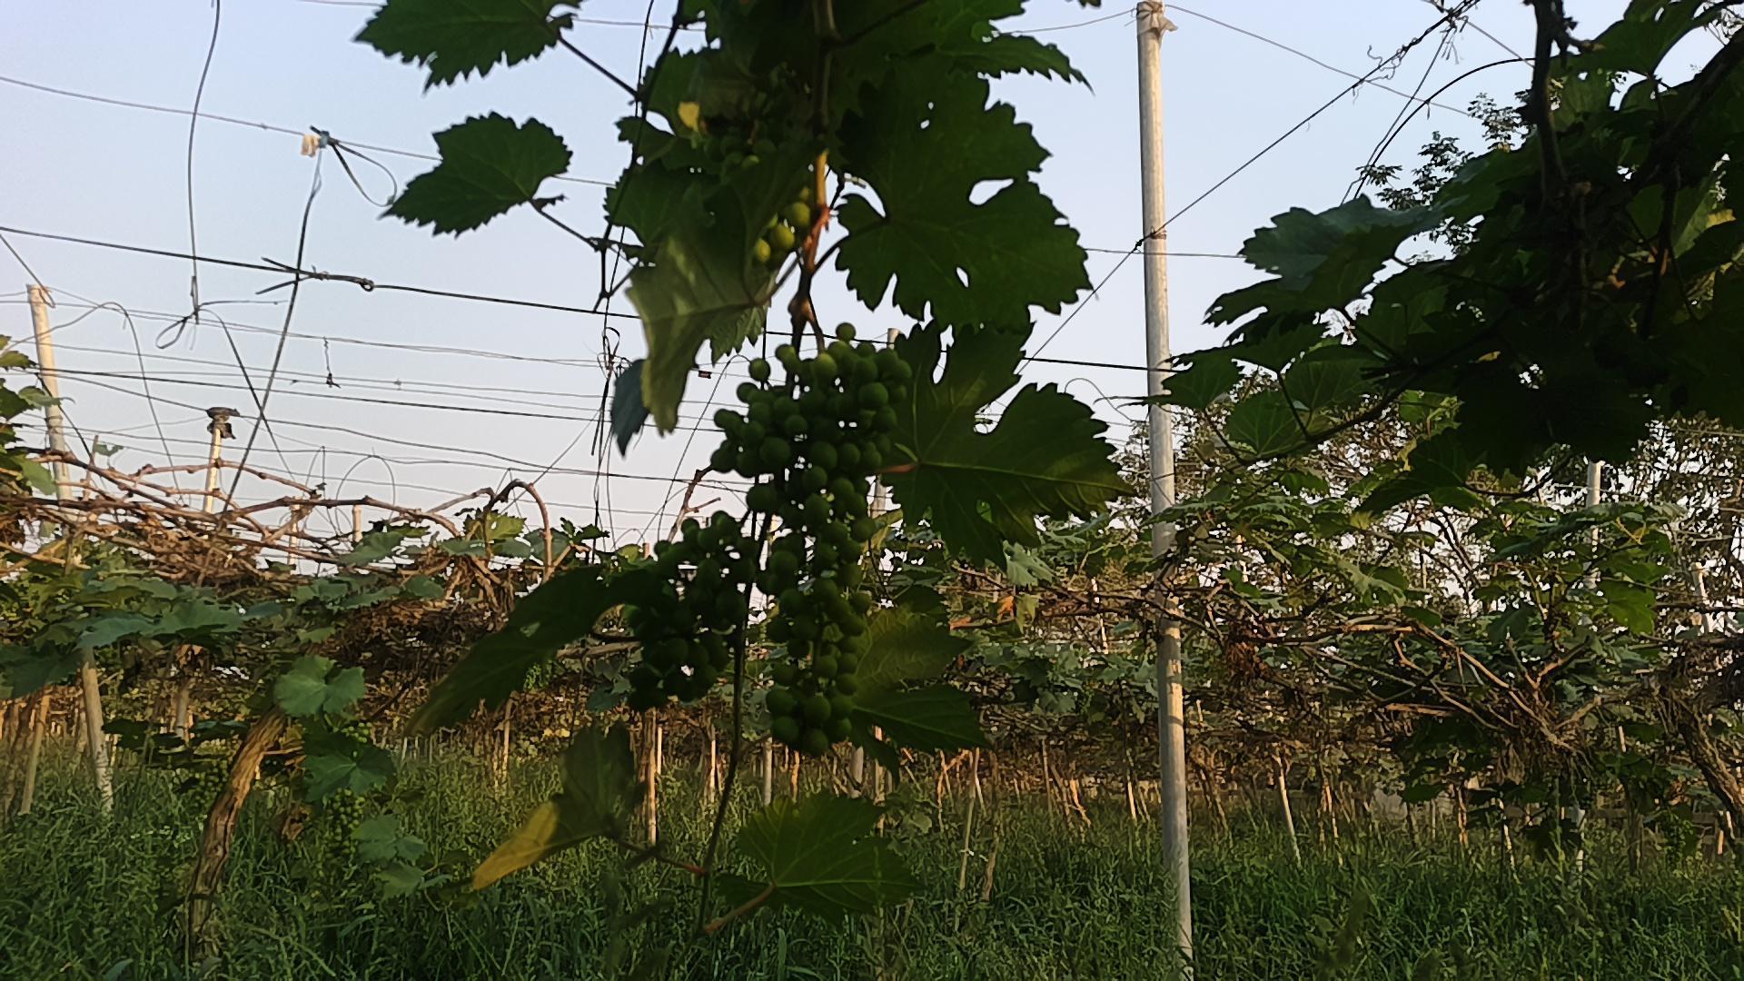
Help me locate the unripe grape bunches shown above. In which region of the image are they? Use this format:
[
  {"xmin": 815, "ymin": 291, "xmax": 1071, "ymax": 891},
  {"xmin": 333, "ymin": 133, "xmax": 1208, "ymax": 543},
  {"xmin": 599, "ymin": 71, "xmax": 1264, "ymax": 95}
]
[
  {"xmin": 704, "ymin": 114, "xmax": 813, "ymax": 262},
  {"xmin": 320, "ymin": 720, "xmax": 376, "ymax": 861},
  {"xmin": 616, "ymin": 511, "xmax": 760, "ymax": 710},
  {"xmin": 710, "ymin": 323, "xmax": 910, "ymax": 756},
  {"xmin": 183, "ymin": 756, "xmax": 228, "ymax": 816}
]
